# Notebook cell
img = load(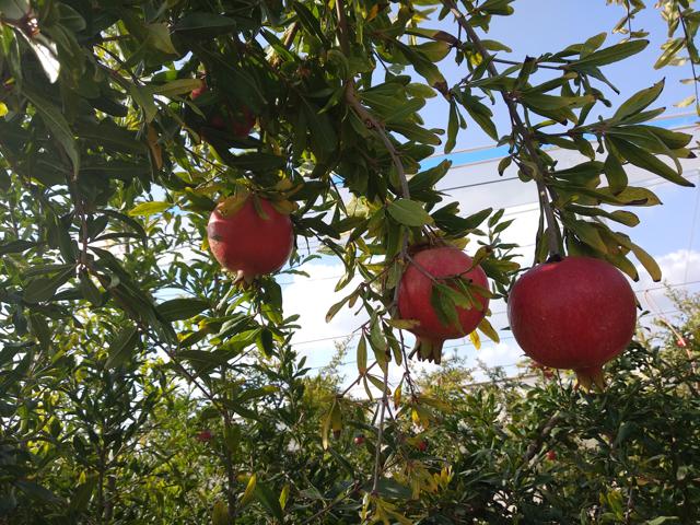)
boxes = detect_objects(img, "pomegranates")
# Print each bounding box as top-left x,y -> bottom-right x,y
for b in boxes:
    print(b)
396,246 -> 489,364
208,195 -> 294,291
506,255 -> 637,393
190,85 -> 256,133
